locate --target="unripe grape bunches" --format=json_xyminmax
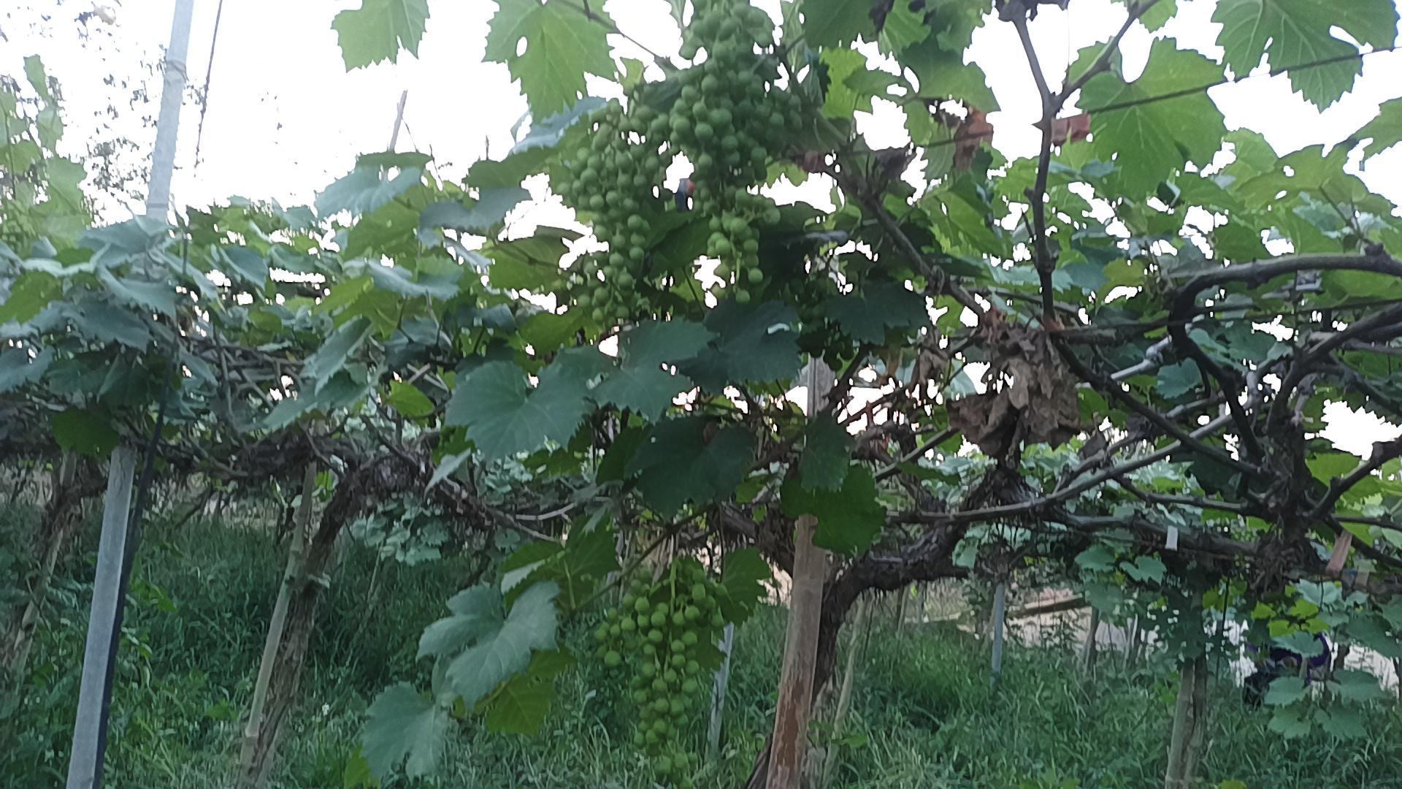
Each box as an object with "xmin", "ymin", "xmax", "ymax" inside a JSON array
[
  {"xmin": 598, "ymin": 559, "xmax": 724, "ymax": 785},
  {"xmin": 559, "ymin": 99, "xmax": 666, "ymax": 331},
  {"xmin": 780, "ymin": 274, "xmax": 855, "ymax": 373},
  {"xmin": 657, "ymin": 2, "xmax": 787, "ymax": 303}
]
